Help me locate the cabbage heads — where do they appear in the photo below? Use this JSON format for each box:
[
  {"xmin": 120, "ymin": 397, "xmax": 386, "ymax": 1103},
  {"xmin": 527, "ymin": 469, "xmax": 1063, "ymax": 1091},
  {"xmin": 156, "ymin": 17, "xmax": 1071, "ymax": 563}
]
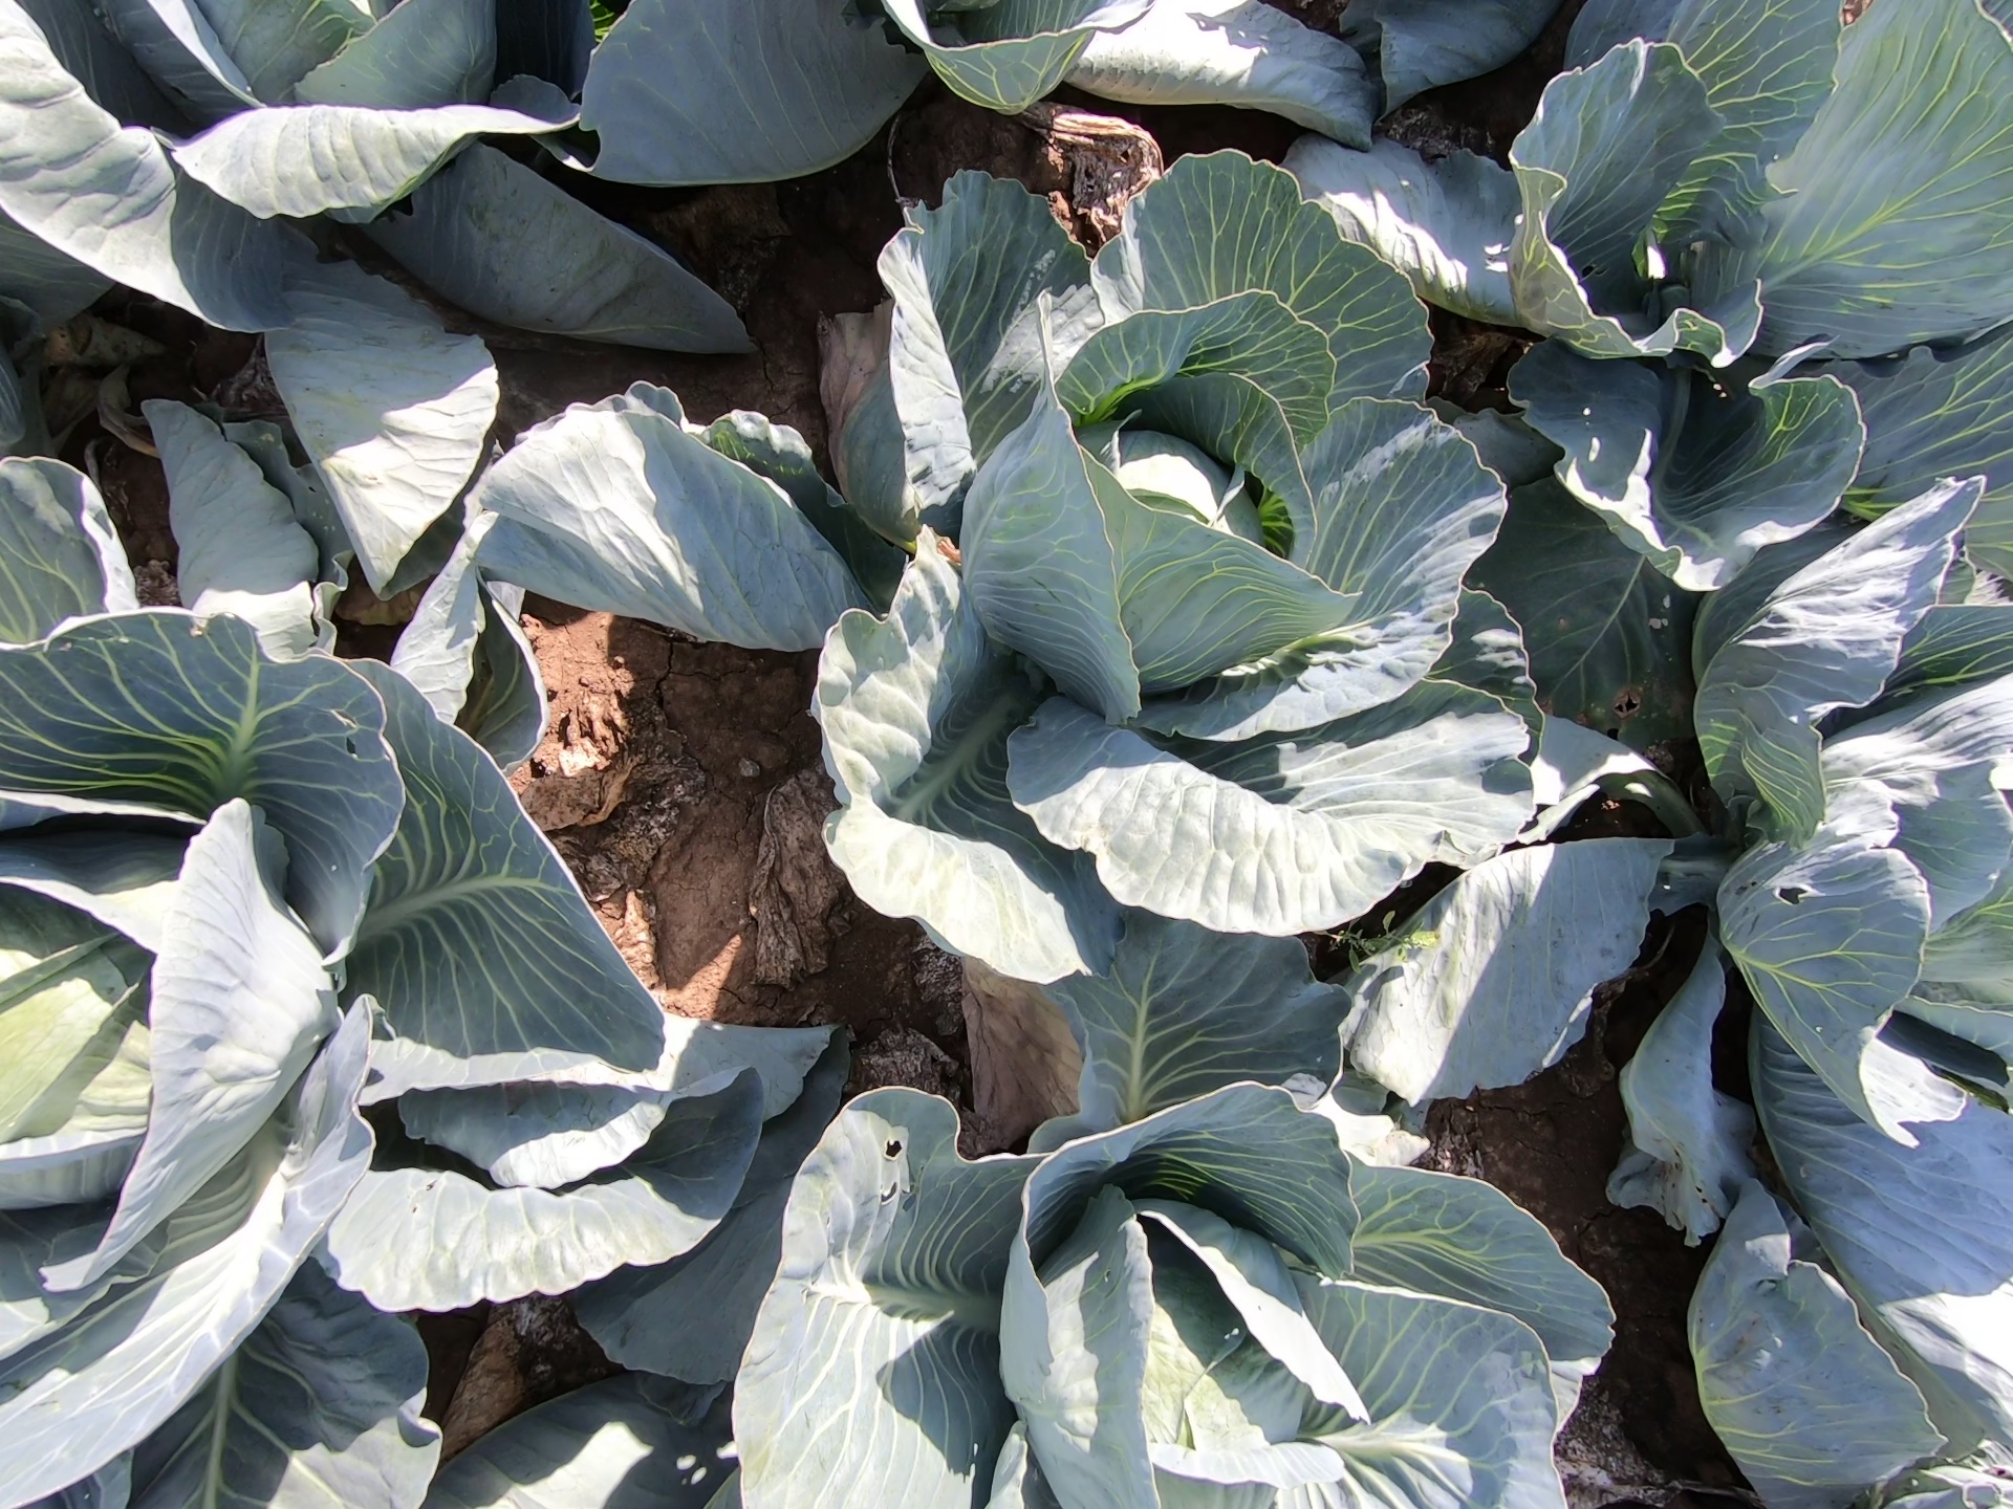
[
  {"xmin": 4, "ymin": 825, "xmax": 296, "ymax": 1209},
  {"xmin": 105, "ymin": 2, "xmax": 488, "ymax": 136},
  {"xmin": 1038, "ymin": 418, "xmax": 1269, "ymax": 688},
  {"xmin": 1031, "ymin": 1209, "xmax": 1313, "ymax": 1503}
]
